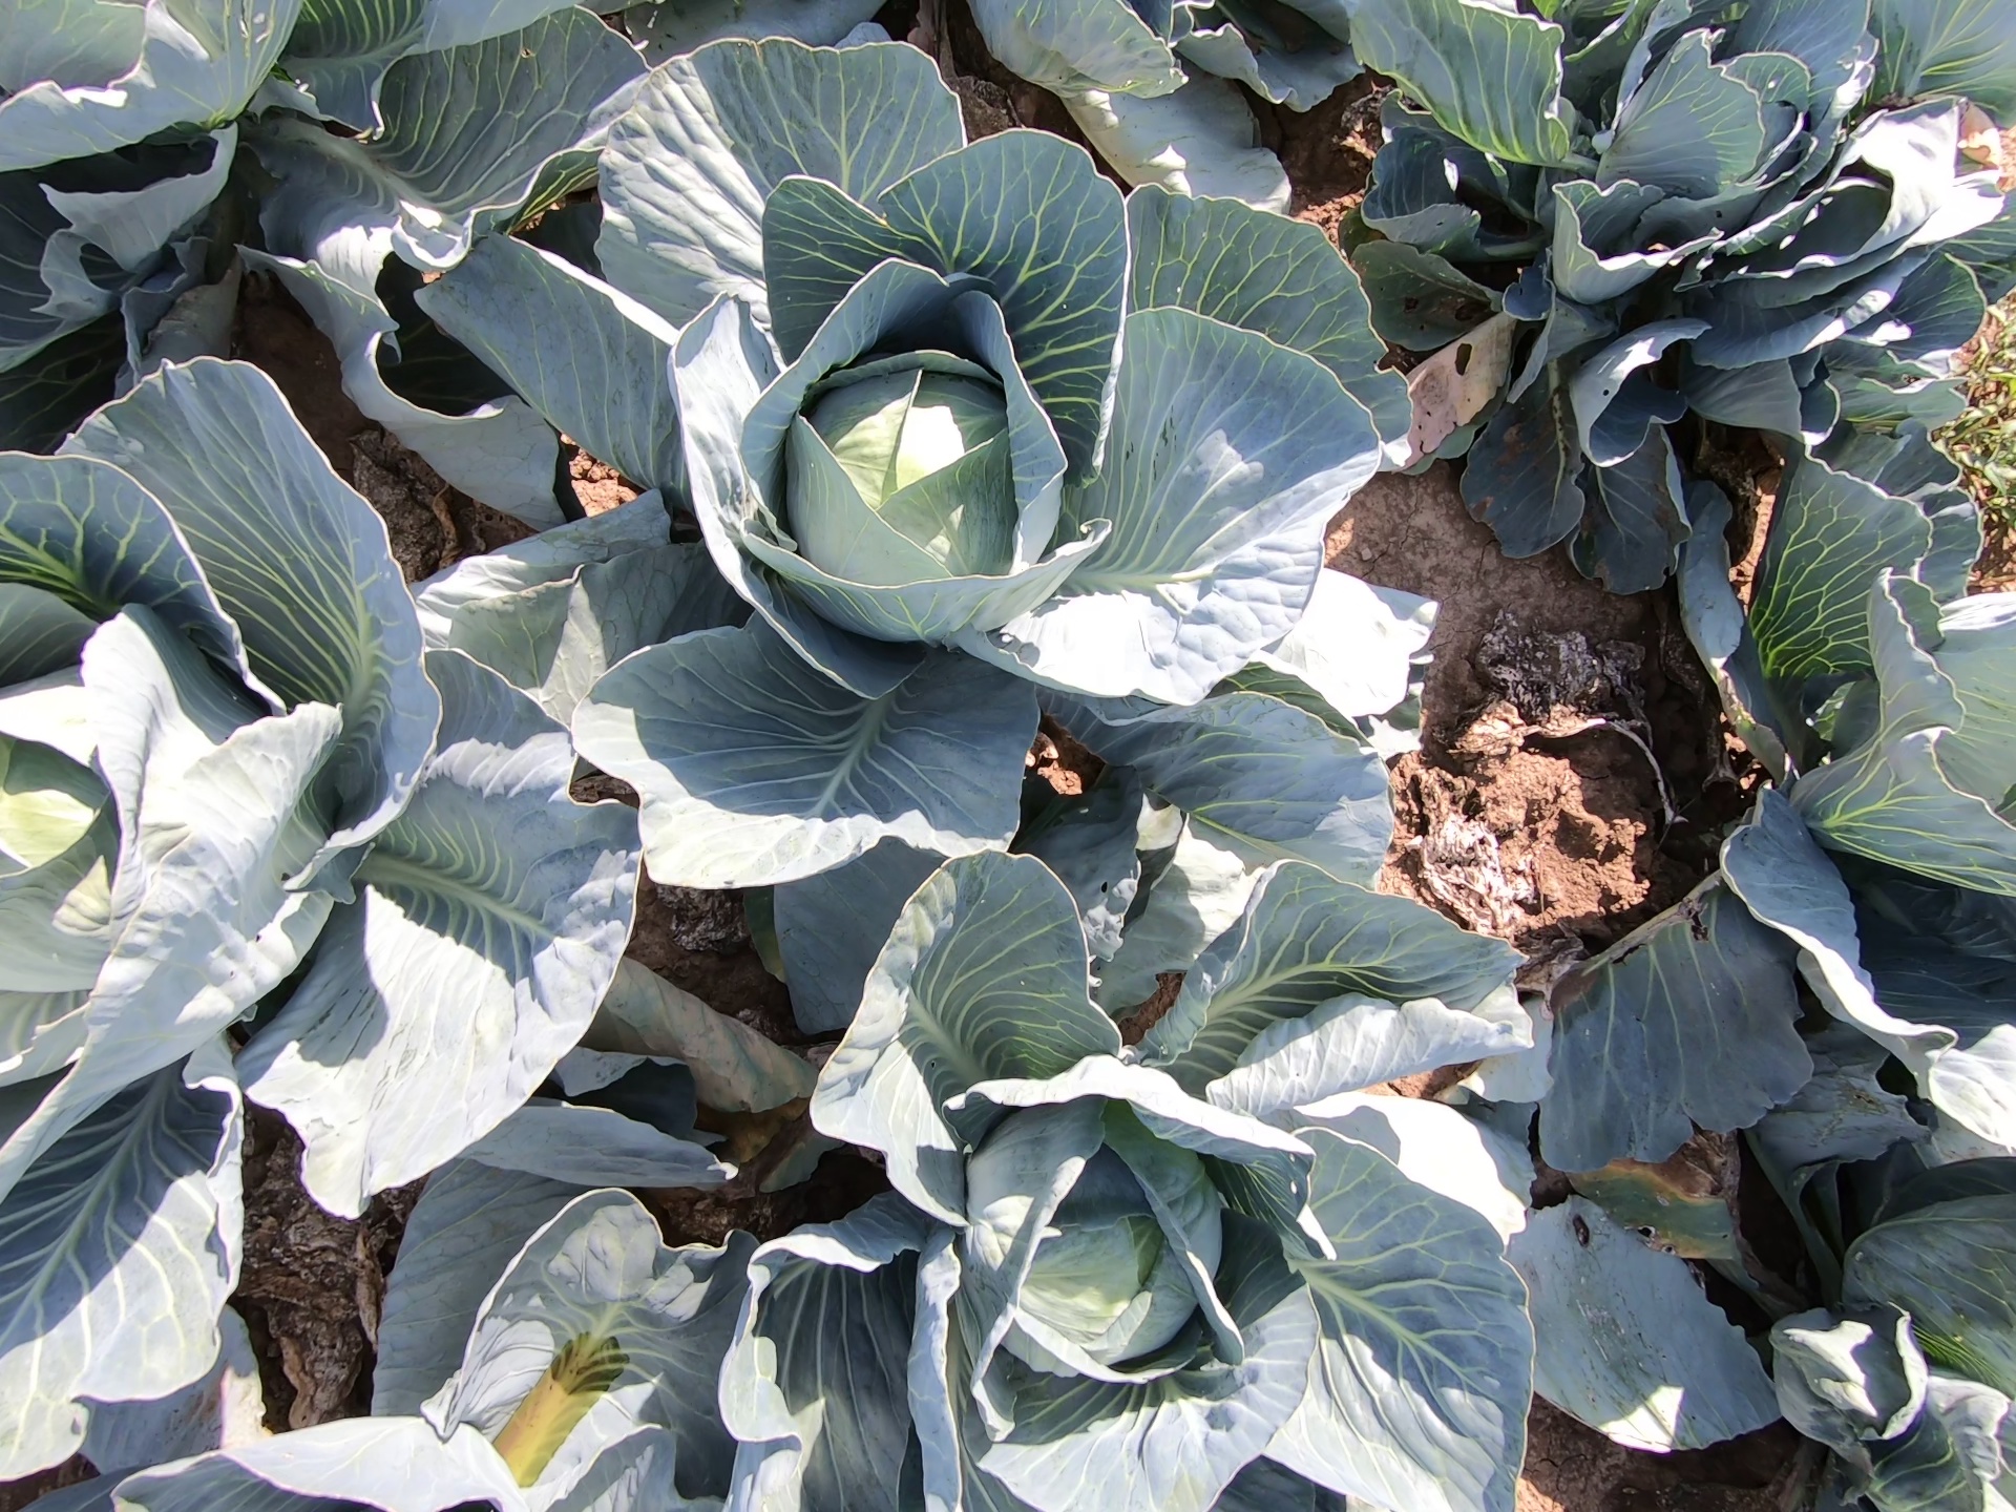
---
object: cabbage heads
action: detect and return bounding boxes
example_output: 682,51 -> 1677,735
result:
801,346 -> 1036,619
3,672 -> 245,989
959,1101 -> 1215,1368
